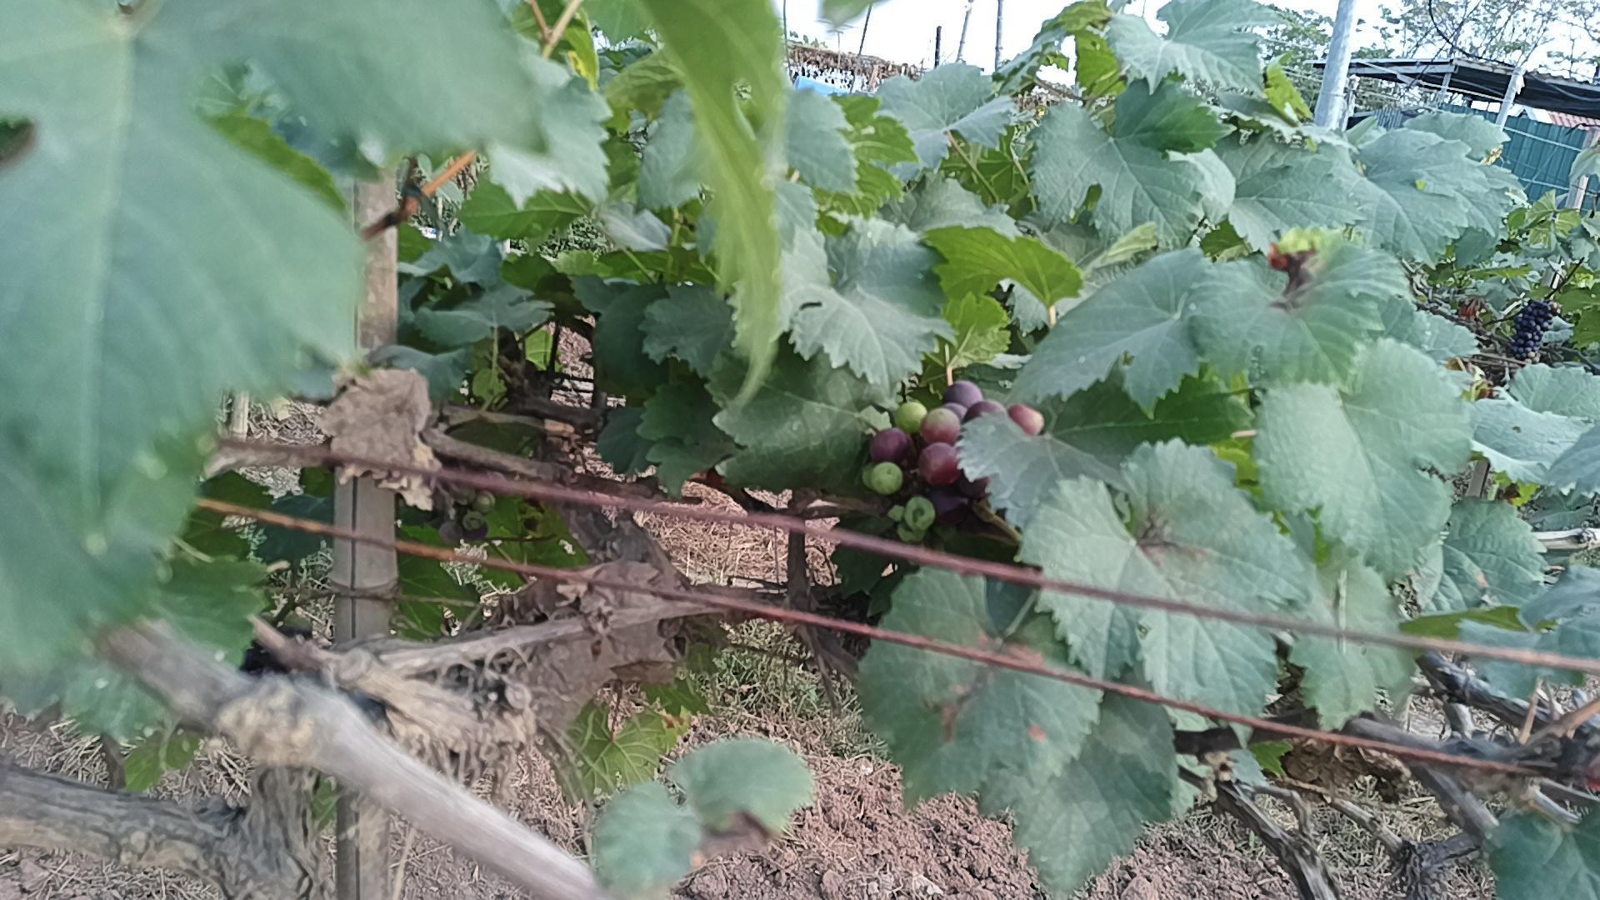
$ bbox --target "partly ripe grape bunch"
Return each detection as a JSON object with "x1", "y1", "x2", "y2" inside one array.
[{"x1": 863, "y1": 381, "x2": 1043, "y2": 540}]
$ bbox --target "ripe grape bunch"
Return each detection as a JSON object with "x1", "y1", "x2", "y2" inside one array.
[{"x1": 1504, "y1": 300, "x2": 1557, "y2": 362}]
